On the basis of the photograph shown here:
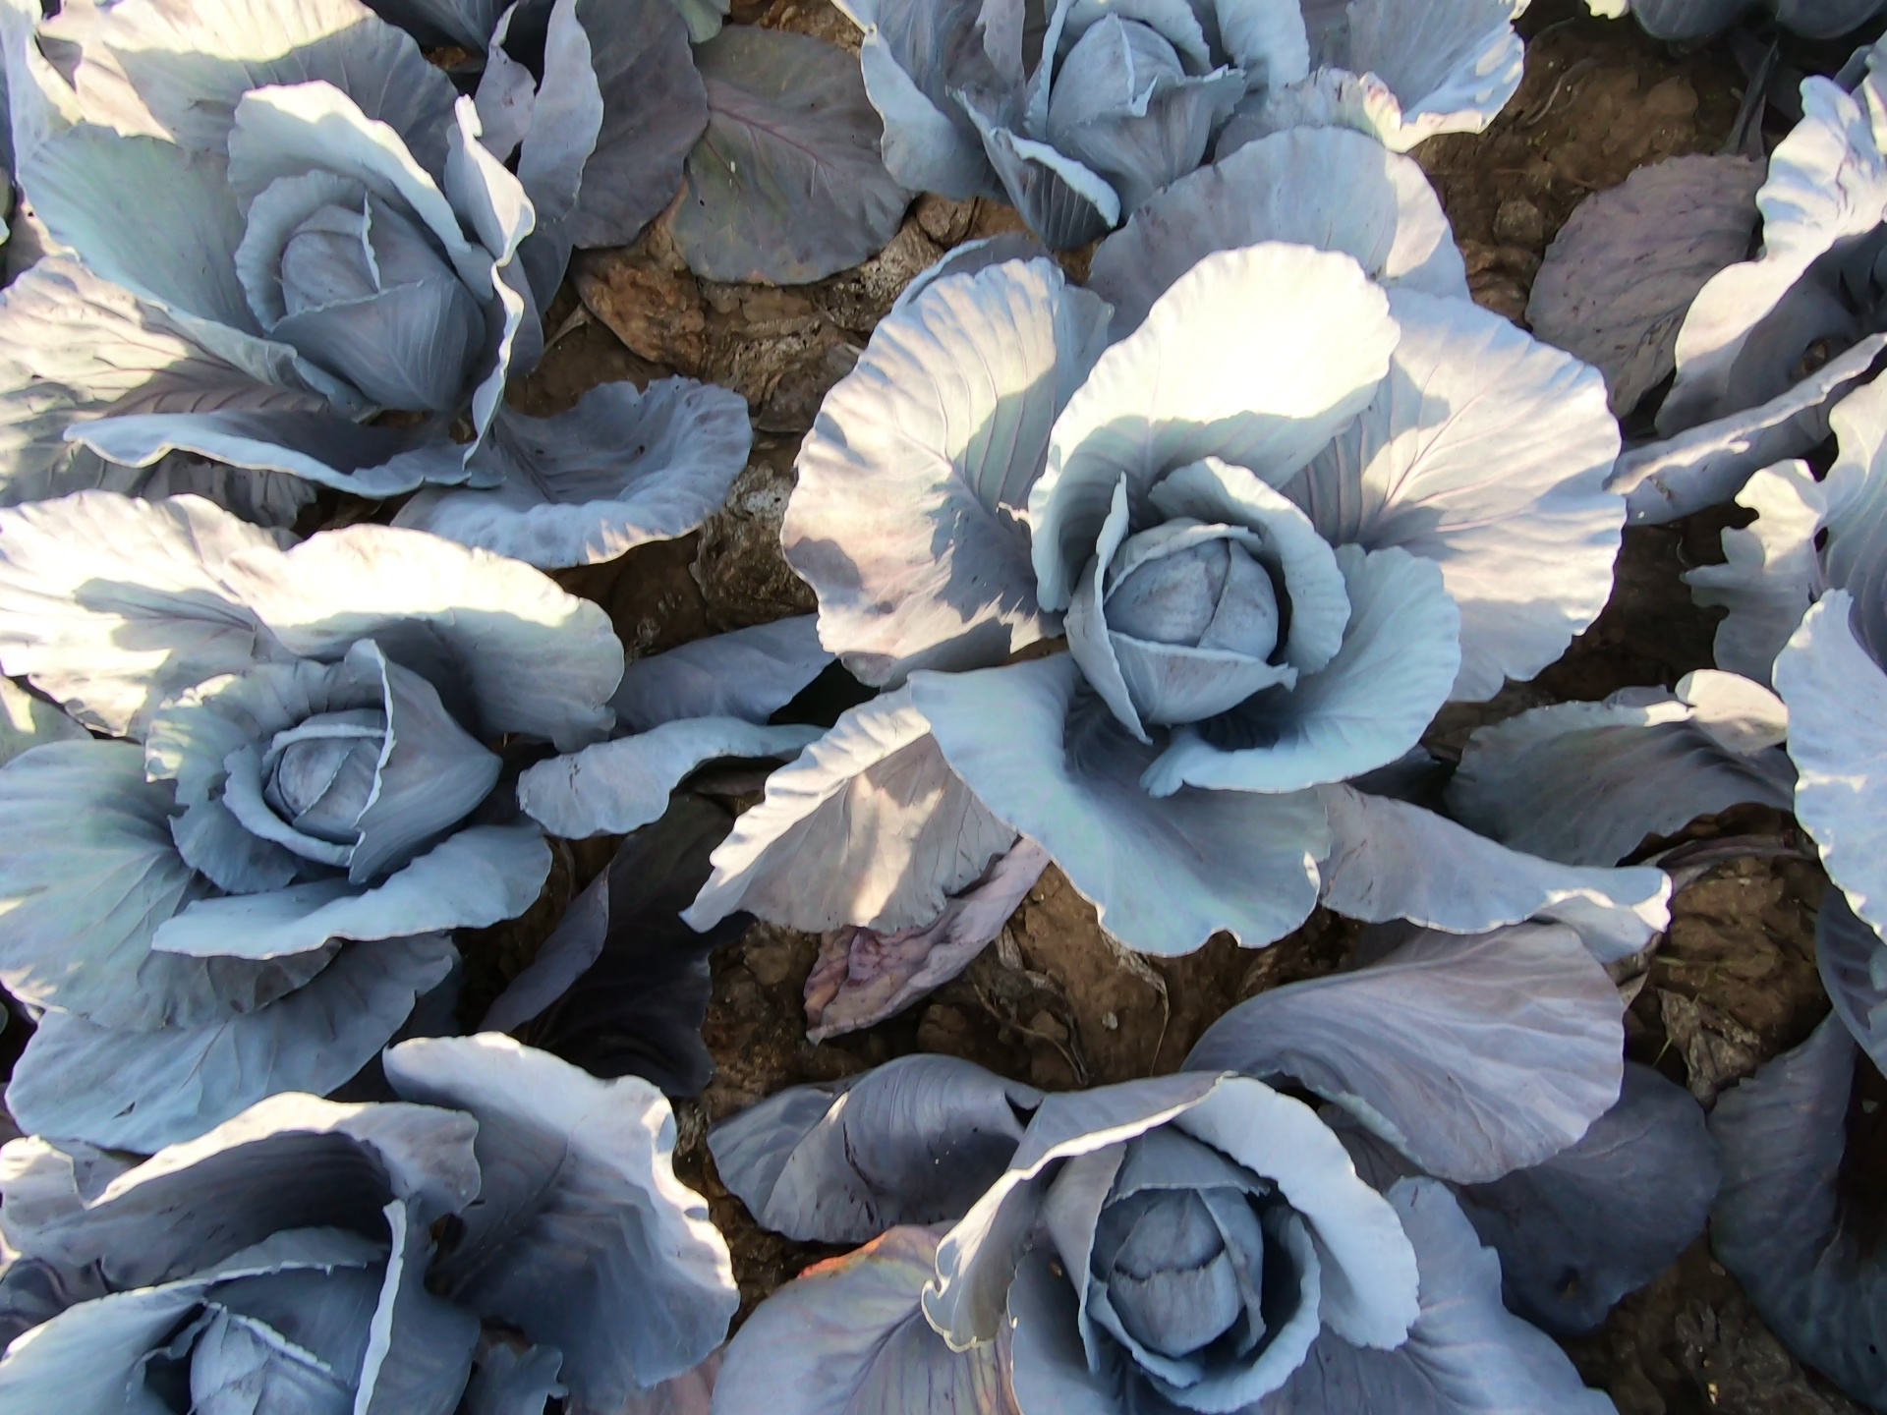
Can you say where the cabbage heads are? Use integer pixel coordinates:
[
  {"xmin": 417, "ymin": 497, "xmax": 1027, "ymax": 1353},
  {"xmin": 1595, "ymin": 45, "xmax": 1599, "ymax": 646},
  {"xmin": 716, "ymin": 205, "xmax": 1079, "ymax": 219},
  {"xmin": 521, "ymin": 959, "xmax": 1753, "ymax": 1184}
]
[
  {"xmin": 1086, "ymin": 518, "xmax": 1276, "ymax": 719},
  {"xmin": 191, "ymin": 1252, "xmax": 420, "ymax": 1413},
  {"xmin": 283, "ymin": 208, "xmax": 462, "ymax": 381},
  {"xmin": 1052, "ymin": 19, "xmax": 1191, "ymax": 180},
  {"xmin": 270, "ymin": 707, "xmax": 451, "ymax": 848},
  {"xmin": 1090, "ymin": 1153, "xmax": 1261, "ymax": 1356}
]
